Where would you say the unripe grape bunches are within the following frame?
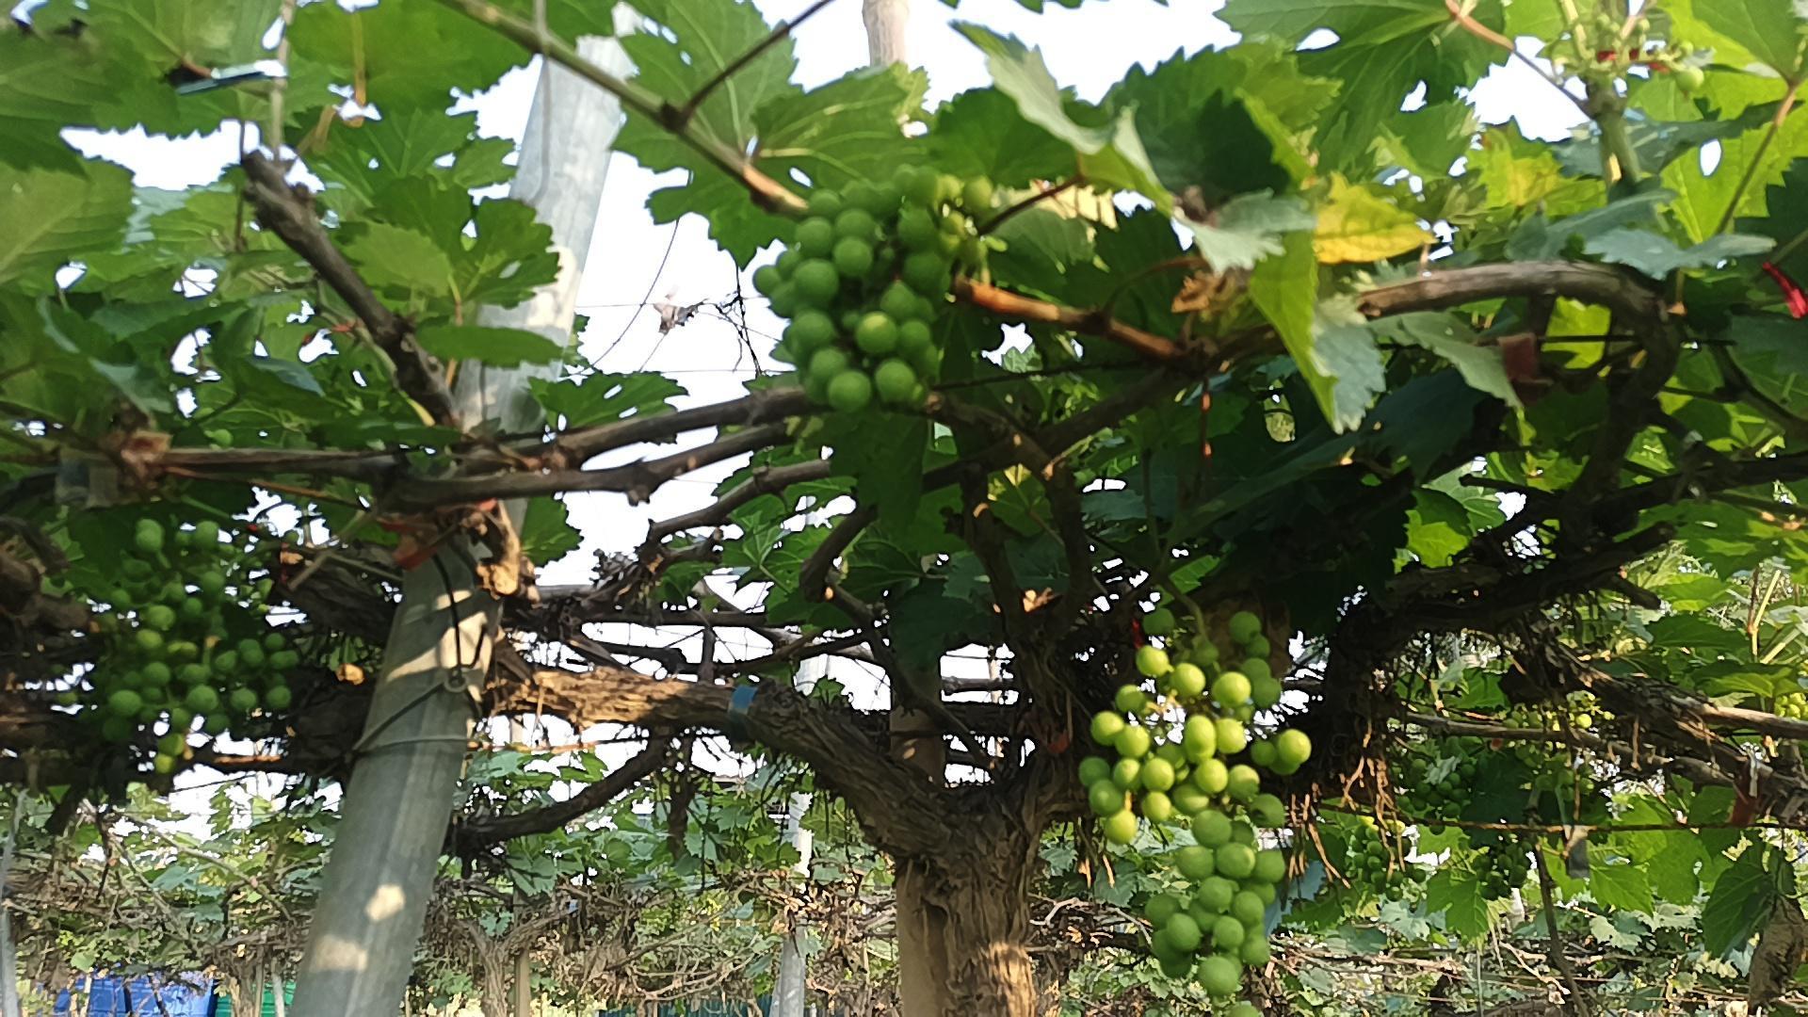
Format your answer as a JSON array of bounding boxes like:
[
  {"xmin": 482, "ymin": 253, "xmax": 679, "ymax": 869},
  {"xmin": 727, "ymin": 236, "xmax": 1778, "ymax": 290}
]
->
[
  {"xmin": 1386, "ymin": 736, "xmax": 1479, "ymax": 835},
  {"xmin": 1470, "ymin": 841, "xmax": 1533, "ymax": 900},
  {"xmin": 1503, "ymin": 709, "xmax": 1594, "ymax": 801},
  {"xmin": 754, "ymin": 164, "xmax": 995, "ymax": 412},
  {"xmin": 1078, "ymin": 608, "xmax": 1310, "ymax": 998},
  {"xmin": 104, "ymin": 519, "xmax": 301, "ymax": 775},
  {"xmin": 1352, "ymin": 809, "xmax": 1426, "ymax": 902}
]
